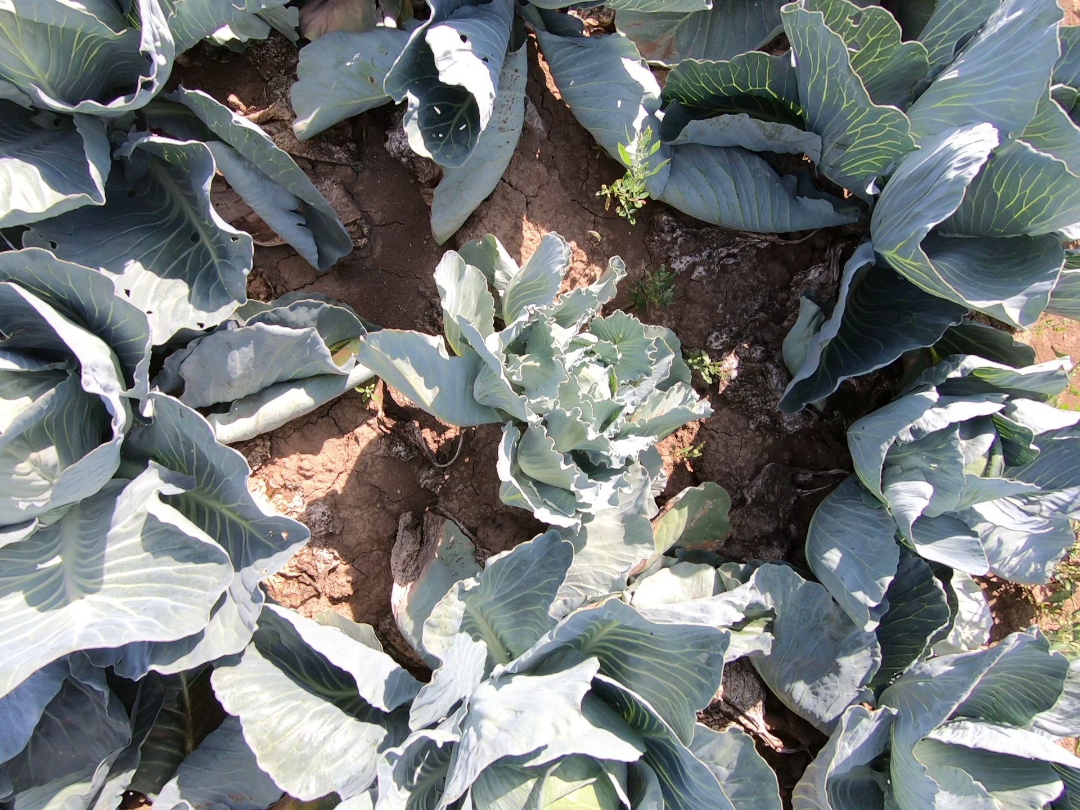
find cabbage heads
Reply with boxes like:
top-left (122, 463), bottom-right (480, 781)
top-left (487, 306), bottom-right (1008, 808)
top-left (557, 358), bottom-right (612, 431)
top-left (1, 1), bottom-right (120, 87)
top-left (0, 361), bottom-right (87, 525)
top-left (470, 681), bottom-right (630, 809)
top-left (918, 420), bottom-right (993, 512)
